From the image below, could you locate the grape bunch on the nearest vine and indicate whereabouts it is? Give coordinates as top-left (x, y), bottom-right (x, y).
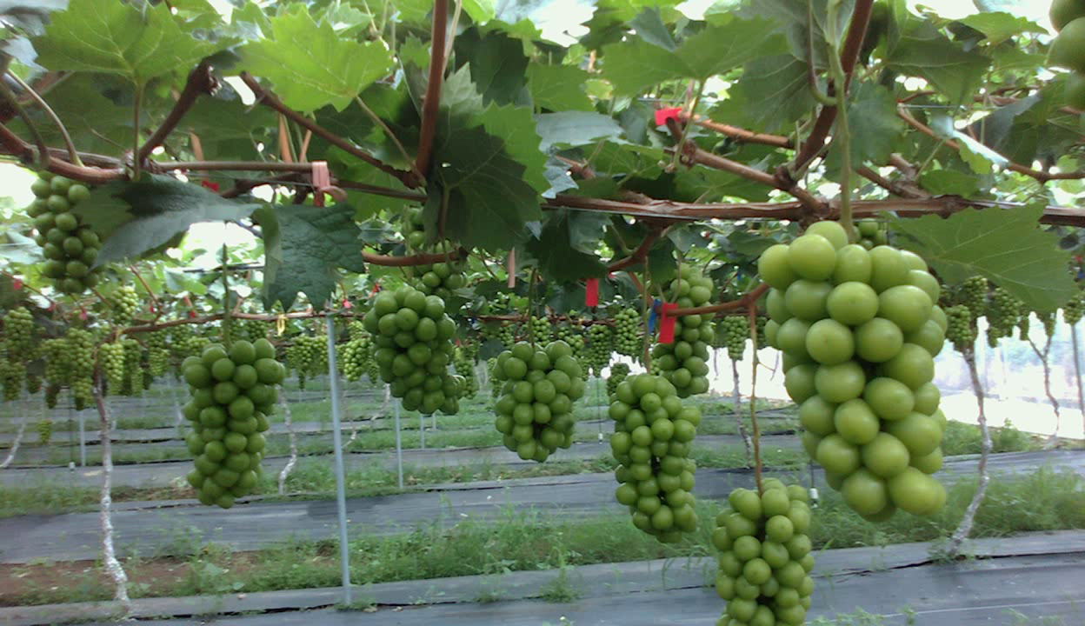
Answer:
top-left (758, 220), bottom-right (949, 523)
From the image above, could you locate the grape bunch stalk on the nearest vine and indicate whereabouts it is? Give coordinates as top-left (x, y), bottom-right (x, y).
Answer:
top-left (827, 0), bottom-right (856, 244)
